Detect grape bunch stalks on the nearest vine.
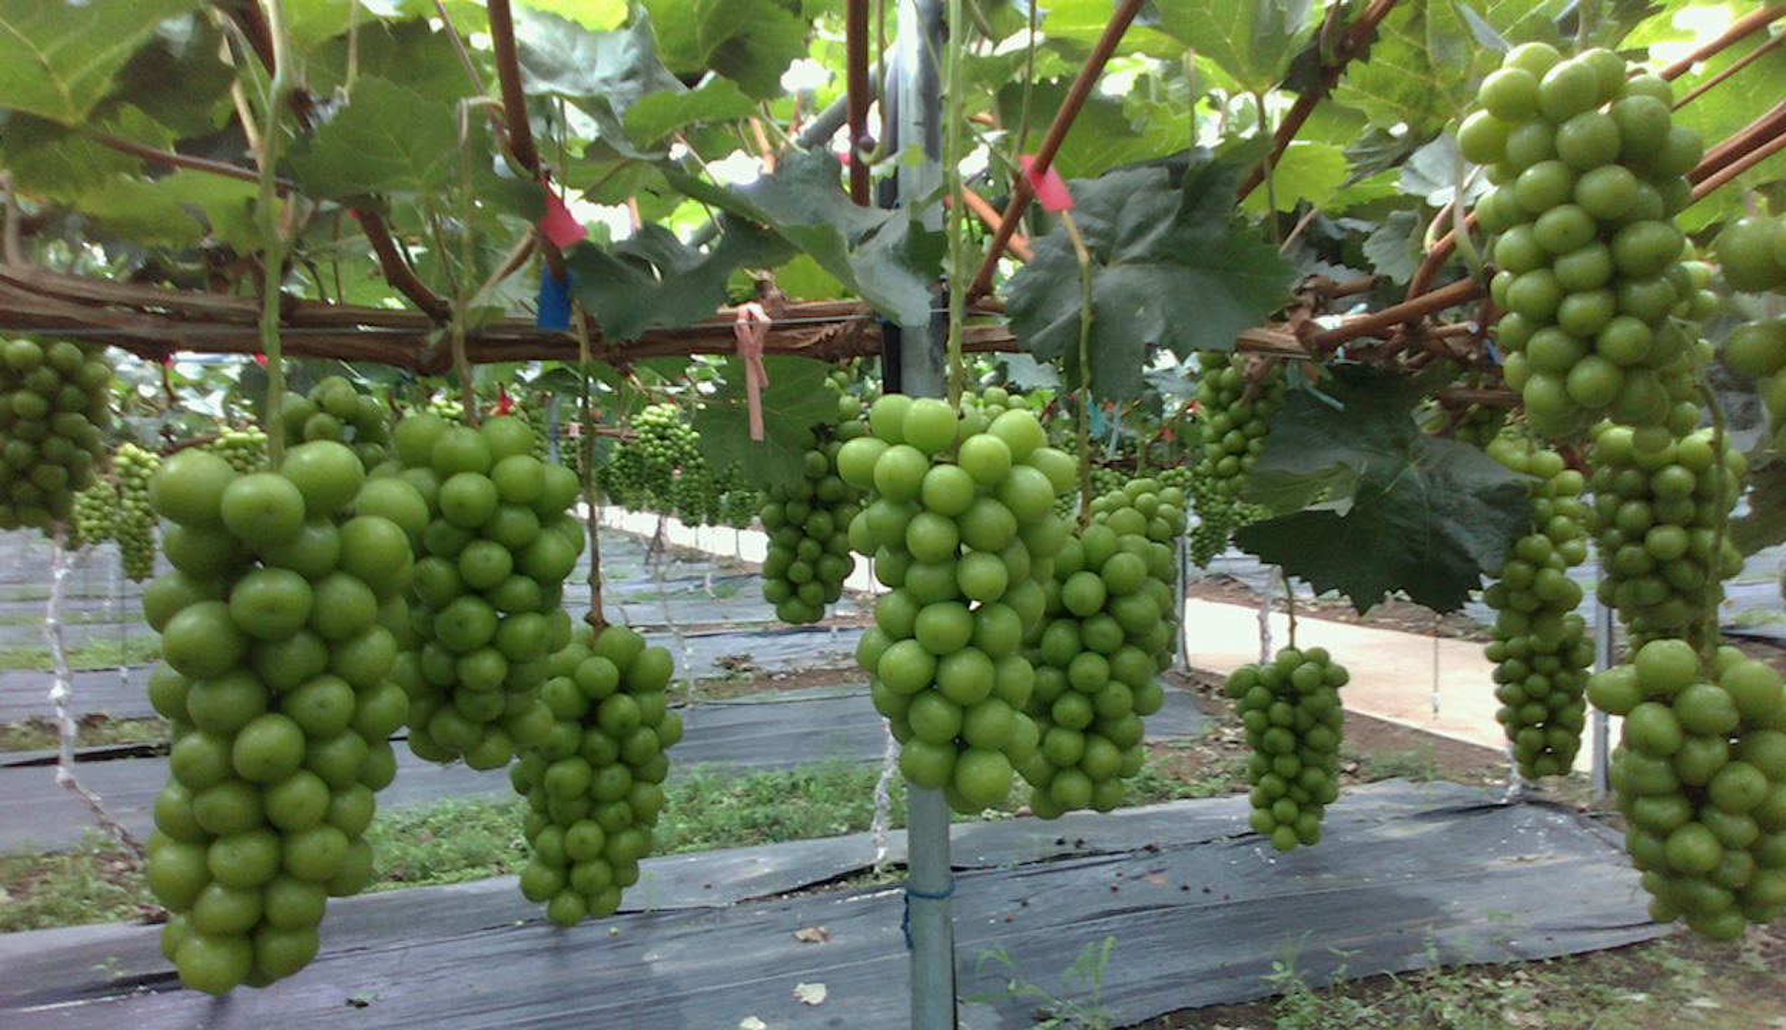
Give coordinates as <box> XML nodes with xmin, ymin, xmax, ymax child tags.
<box><xmin>947</xmin><ymin>0</ymin><xmax>965</xmax><ymax>403</ymax></box>
<box><xmin>454</xmin><ymin>94</ymin><xmax>507</xmax><ymax>425</ymax></box>
<box><xmin>1670</xmin><ymin>316</ymin><xmax>1727</xmax><ymax>675</ymax></box>
<box><xmin>255</xmin><ymin>0</ymin><xmax>292</xmax><ymax>468</ymax></box>
<box><xmin>572</xmin><ymin>296</ymin><xmax>601</xmax><ymax>641</ymax></box>
<box><xmin>1056</xmin><ymin>207</ymin><xmax>1090</xmax><ymax>532</ymax></box>
<box><xmin>1573</xmin><ymin>0</ymin><xmax>1590</xmax><ymax>54</ymax></box>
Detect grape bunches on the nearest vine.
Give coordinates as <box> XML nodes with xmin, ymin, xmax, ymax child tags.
<box><xmin>837</xmin><ymin>393</ymin><xmax>1078</xmax><ymax>814</ymax></box>
<box><xmin>1589</xmin><ymin>639</ymin><xmax>1785</xmax><ymax>937</ymax></box>
<box><xmin>143</xmin><ymin>439</ymin><xmax>421</xmax><ymax>999</ymax></box>
<box><xmin>1457</xmin><ymin>43</ymin><xmax>1704</xmax><ymax>441</ymax></box>
<box><xmin>1018</xmin><ymin>508</ymin><xmax>1172</xmax><ymax>820</ymax></box>
<box><xmin>378</xmin><ymin>411</ymin><xmax>587</xmax><ymax>771</ymax></box>
<box><xmin>509</xmin><ymin>625</ymin><xmax>683</xmax><ymax>927</ymax></box>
